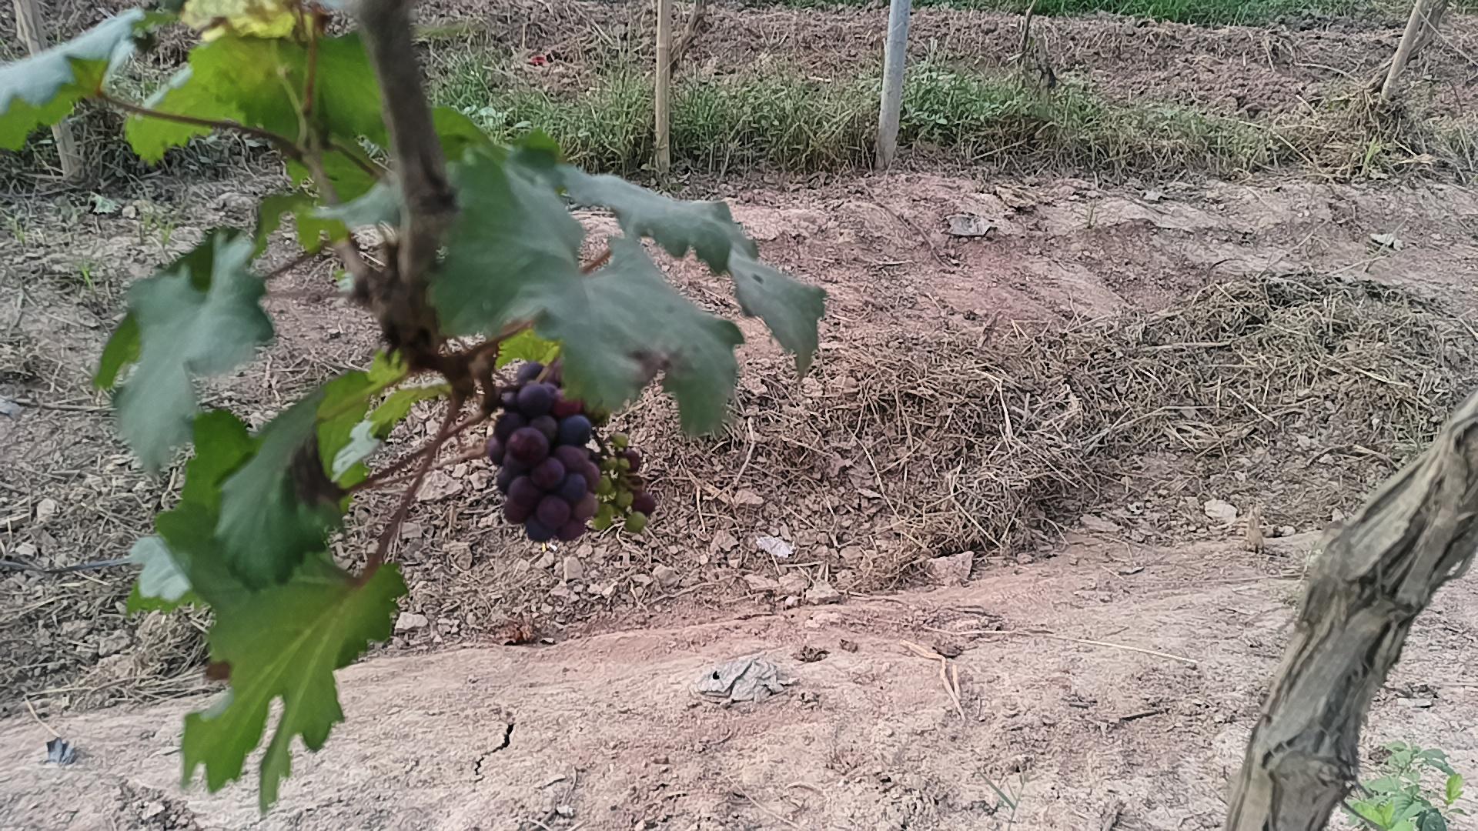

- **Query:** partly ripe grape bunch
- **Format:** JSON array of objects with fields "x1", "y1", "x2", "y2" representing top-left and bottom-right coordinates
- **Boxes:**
[{"x1": 484, "y1": 359, "x2": 657, "y2": 543}]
